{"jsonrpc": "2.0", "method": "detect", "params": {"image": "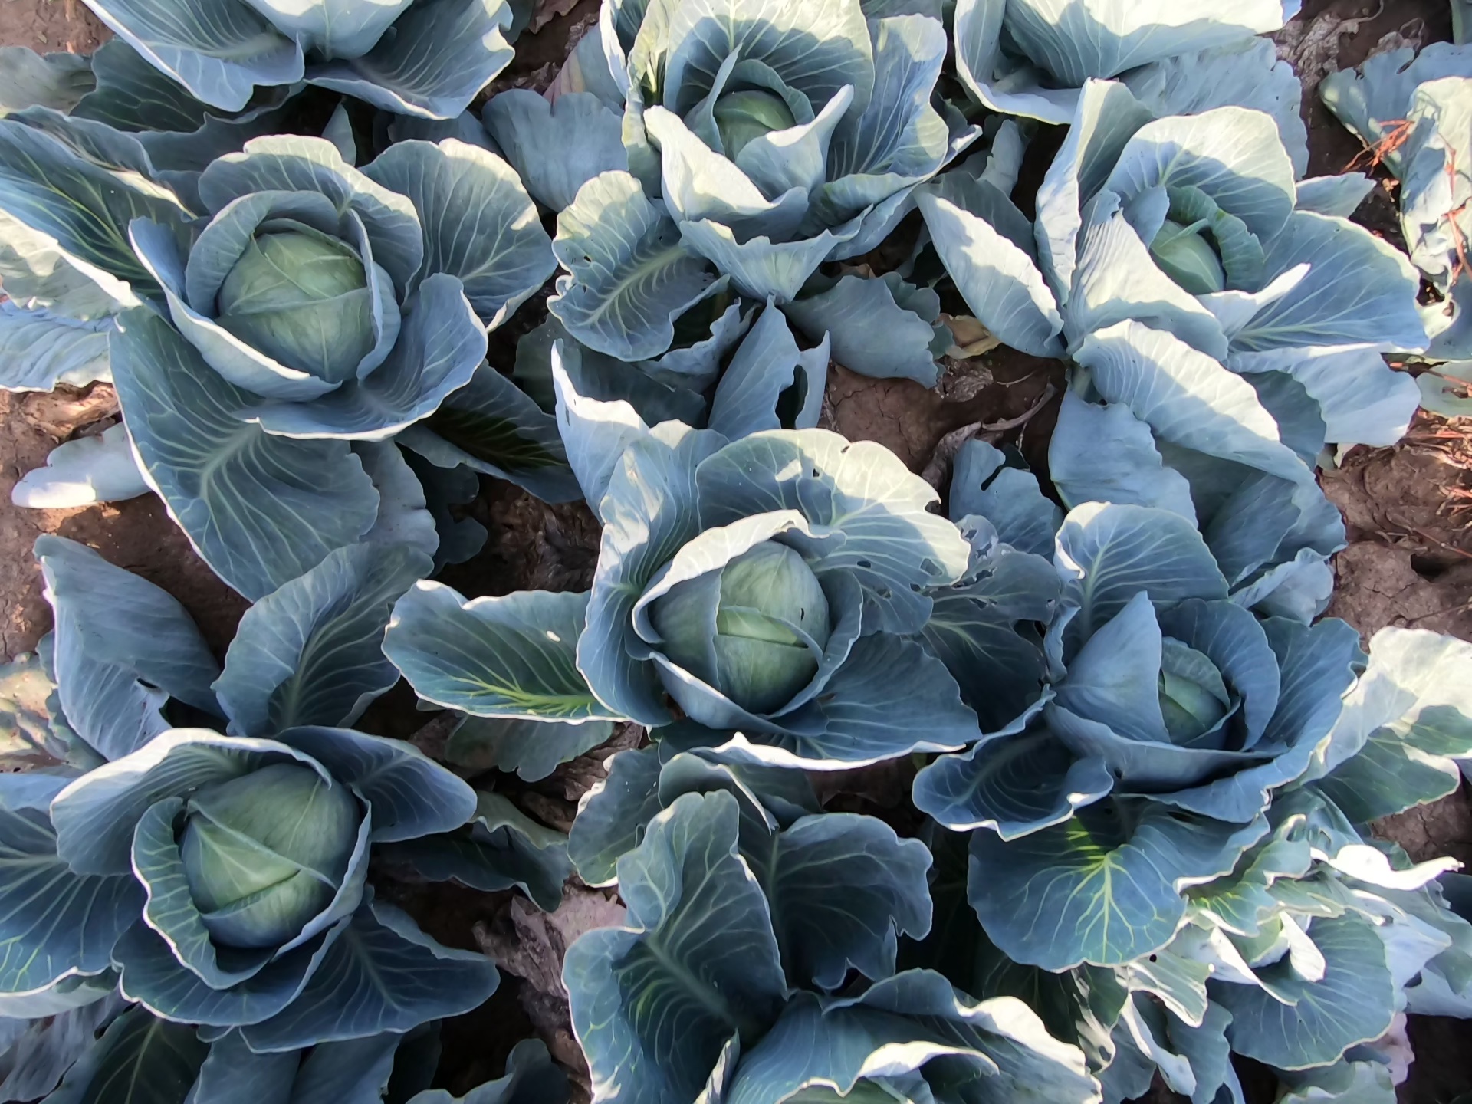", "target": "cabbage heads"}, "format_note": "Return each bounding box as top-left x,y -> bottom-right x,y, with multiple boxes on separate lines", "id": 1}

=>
1083,641 -> 1229,774
1098,215 -> 1228,353
685,87 -> 808,207
175,766 -> 360,949
655,534 -> 828,711
1201,850 -> 1309,968
205,229 -> 382,388
741,1037 -> 912,1102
